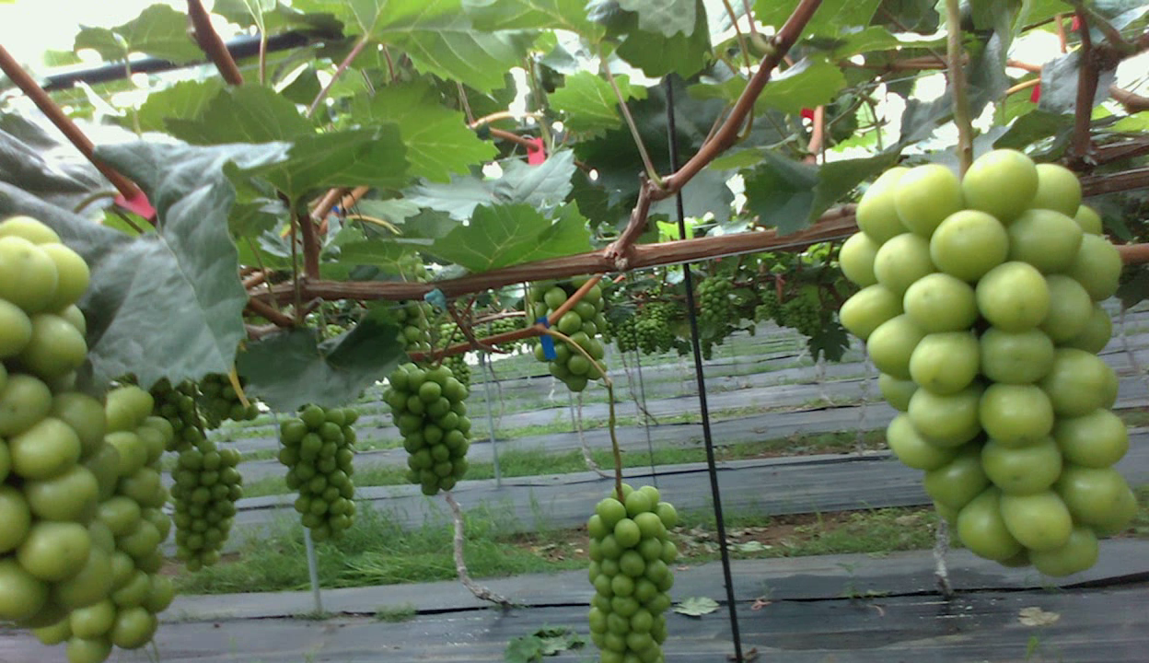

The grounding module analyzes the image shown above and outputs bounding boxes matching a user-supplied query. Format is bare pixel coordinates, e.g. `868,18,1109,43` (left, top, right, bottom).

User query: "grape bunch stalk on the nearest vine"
947,0,972,175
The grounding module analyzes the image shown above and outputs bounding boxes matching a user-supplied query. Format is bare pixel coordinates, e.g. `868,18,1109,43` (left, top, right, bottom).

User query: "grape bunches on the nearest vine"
33,386,177,662
837,147,1141,573
0,215,118,629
